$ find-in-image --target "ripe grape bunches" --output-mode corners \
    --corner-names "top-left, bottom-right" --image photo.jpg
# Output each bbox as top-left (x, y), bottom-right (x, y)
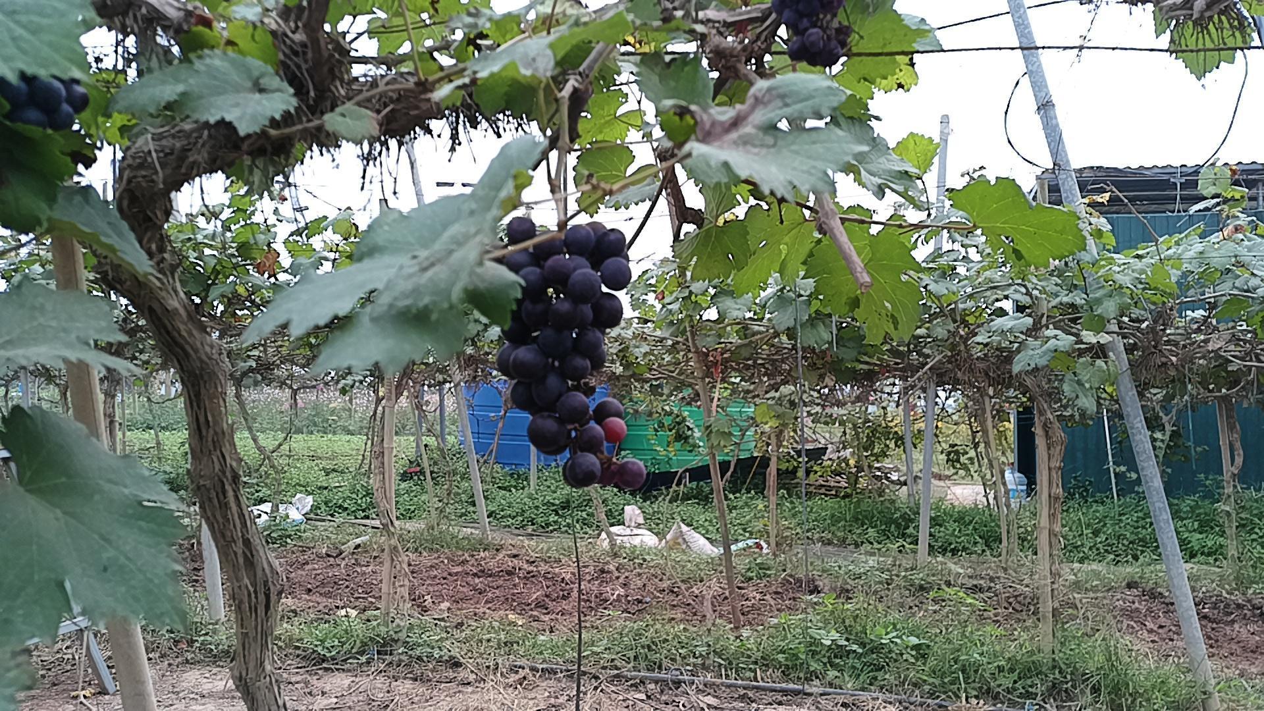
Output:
top-left (496, 217), bottom-right (646, 490)
top-left (0, 72), bottom-right (89, 131)
top-left (771, 0), bottom-right (853, 67)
